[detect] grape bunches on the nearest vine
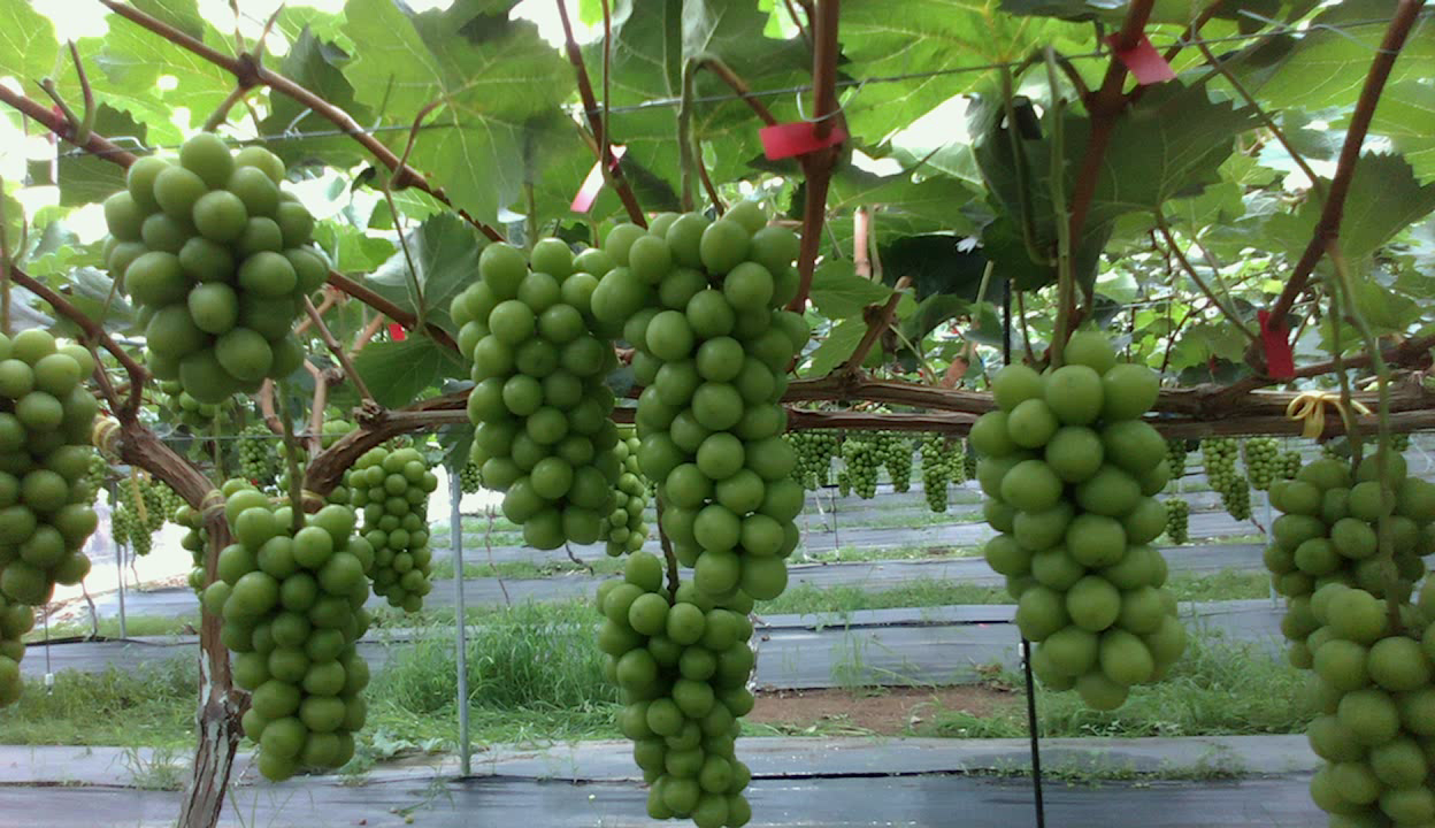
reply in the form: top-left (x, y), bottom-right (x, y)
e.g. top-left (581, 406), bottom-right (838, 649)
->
top-left (451, 238), bottom-right (622, 552)
top-left (0, 328), bottom-right (101, 608)
top-left (1304, 574), bottom-right (1434, 827)
top-left (1265, 451), bottom-right (1434, 669)
top-left (597, 551), bottom-right (754, 827)
top-left (969, 332), bottom-right (1184, 712)
top-left (202, 489), bottom-right (374, 783)
top-left (590, 200), bottom-right (811, 600)
top-left (101, 133), bottom-right (325, 406)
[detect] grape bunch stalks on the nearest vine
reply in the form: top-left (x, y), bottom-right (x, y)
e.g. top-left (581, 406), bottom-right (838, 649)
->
top-left (0, 224), bottom-right (11, 332)
top-left (675, 53), bottom-right (777, 209)
top-left (202, 87), bottom-right (247, 130)
top-left (1332, 248), bottom-right (1404, 632)
top-left (655, 494), bottom-right (678, 604)
top-left (1042, 46), bottom-right (1090, 370)
top-left (282, 412), bottom-right (304, 534)
top-left (1311, 274), bottom-right (1363, 473)
top-left (523, 184), bottom-right (537, 240)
